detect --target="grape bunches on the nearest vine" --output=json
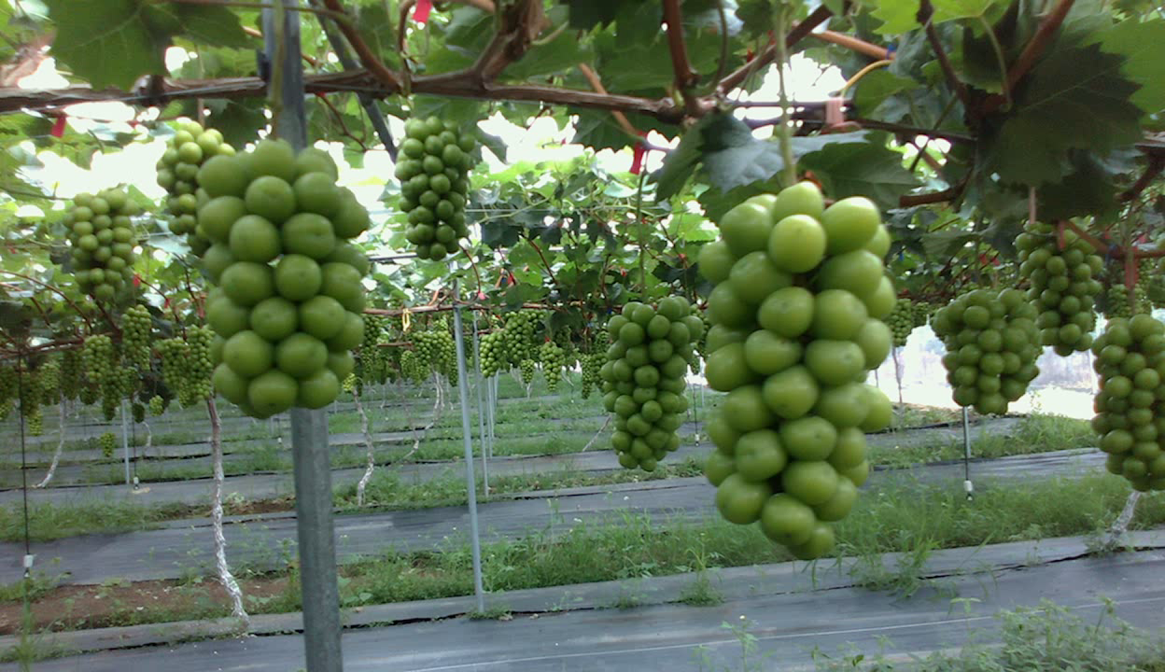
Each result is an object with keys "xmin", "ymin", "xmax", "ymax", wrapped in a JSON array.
[
  {"xmin": 699, "ymin": 181, "xmax": 896, "ymax": 562},
  {"xmin": 194, "ymin": 139, "xmax": 371, "ymax": 422}
]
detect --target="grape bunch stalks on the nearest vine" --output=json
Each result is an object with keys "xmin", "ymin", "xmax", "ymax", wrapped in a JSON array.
[
  {"xmin": 268, "ymin": 0, "xmax": 286, "ymax": 142},
  {"xmin": 776, "ymin": 1, "xmax": 796, "ymax": 187}
]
